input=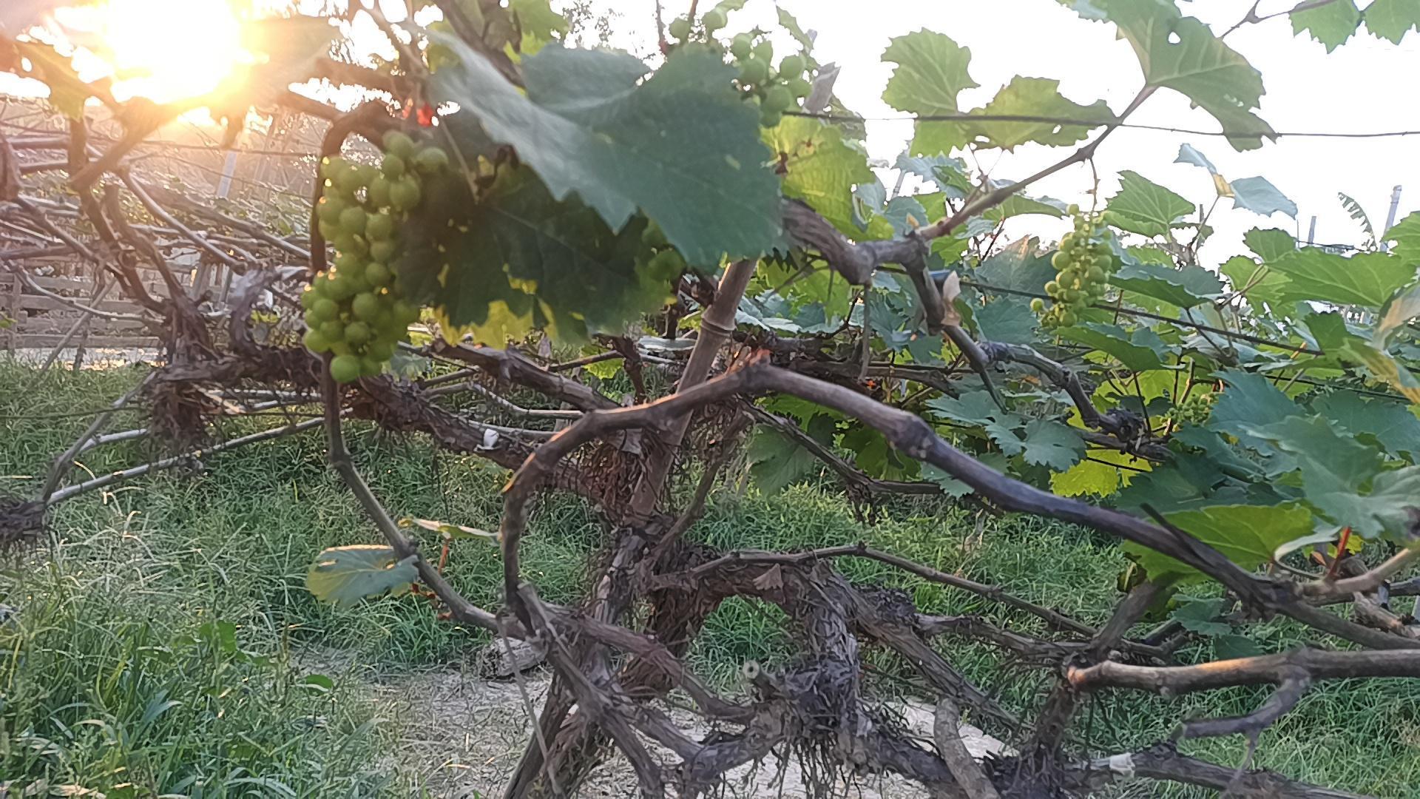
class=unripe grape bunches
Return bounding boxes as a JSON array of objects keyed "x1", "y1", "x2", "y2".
[
  {"x1": 302, "y1": 132, "x2": 447, "y2": 383},
  {"x1": 1032, "y1": 212, "x2": 1115, "y2": 329},
  {"x1": 669, "y1": 0, "x2": 817, "y2": 127}
]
